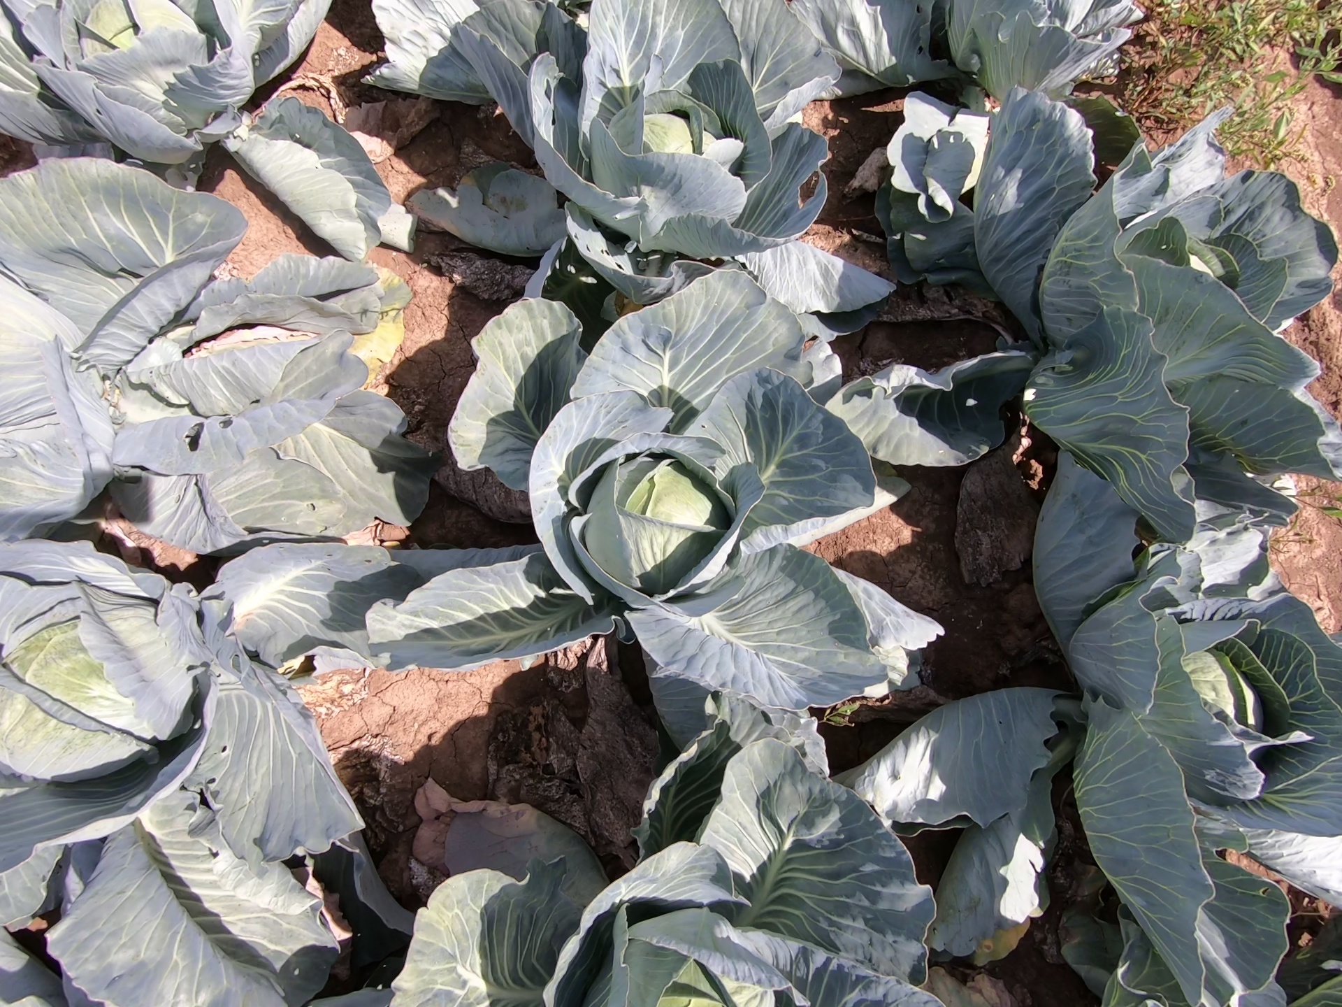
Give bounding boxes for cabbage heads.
[2,599,196,785]
[1108,234,1224,386]
[65,0,221,132]
[613,108,728,202]
[589,915,777,1005]
[586,452,730,590]
[1,280,90,505]
[1152,643,1268,783]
